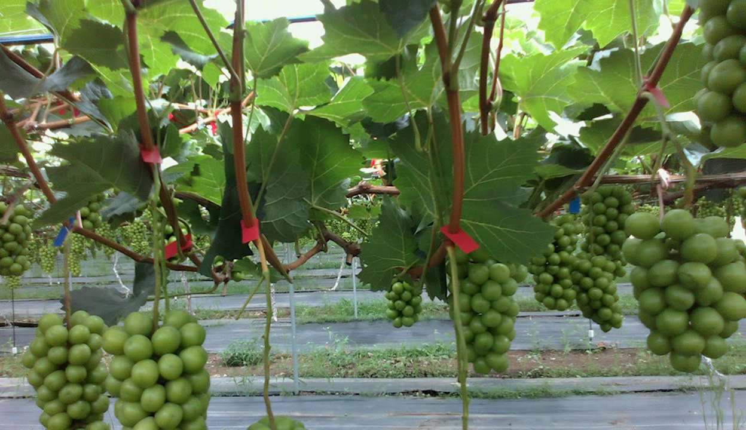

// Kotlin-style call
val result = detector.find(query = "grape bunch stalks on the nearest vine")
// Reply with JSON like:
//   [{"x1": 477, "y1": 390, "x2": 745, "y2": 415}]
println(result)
[
  {"x1": 149, "y1": 163, "x2": 161, "y2": 333},
  {"x1": 253, "y1": 238, "x2": 277, "y2": 429},
  {"x1": 640, "y1": 91, "x2": 696, "y2": 209},
  {"x1": 63, "y1": 234, "x2": 72, "y2": 331}
]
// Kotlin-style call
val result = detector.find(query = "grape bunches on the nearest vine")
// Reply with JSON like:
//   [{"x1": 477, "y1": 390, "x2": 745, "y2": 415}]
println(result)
[
  {"x1": 22, "y1": 309, "x2": 109, "y2": 429},
  {"x1": 621, "y1": 209, "x2": 745, "y2": 373},
  {"x1": 246, "y1": 416, "x2": 305, "y2": 429},
  {"x1": 102, "y1": 309, "x2": 211, "y2": 429},
  {"x1": 445, "y1": 247, "x2": 529, "y2": 376}
]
